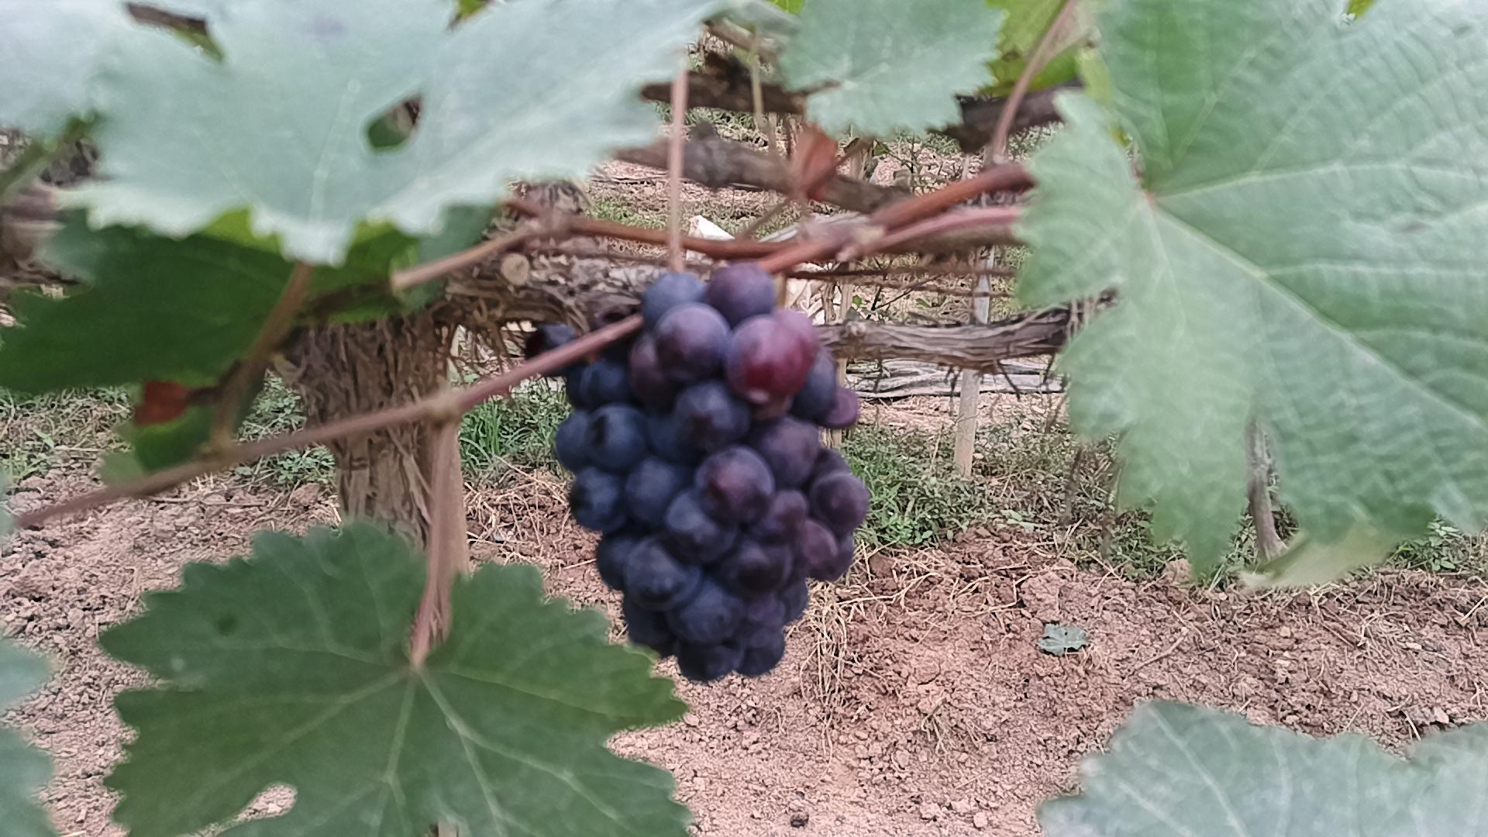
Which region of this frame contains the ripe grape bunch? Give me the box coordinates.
[525,264,869,680]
